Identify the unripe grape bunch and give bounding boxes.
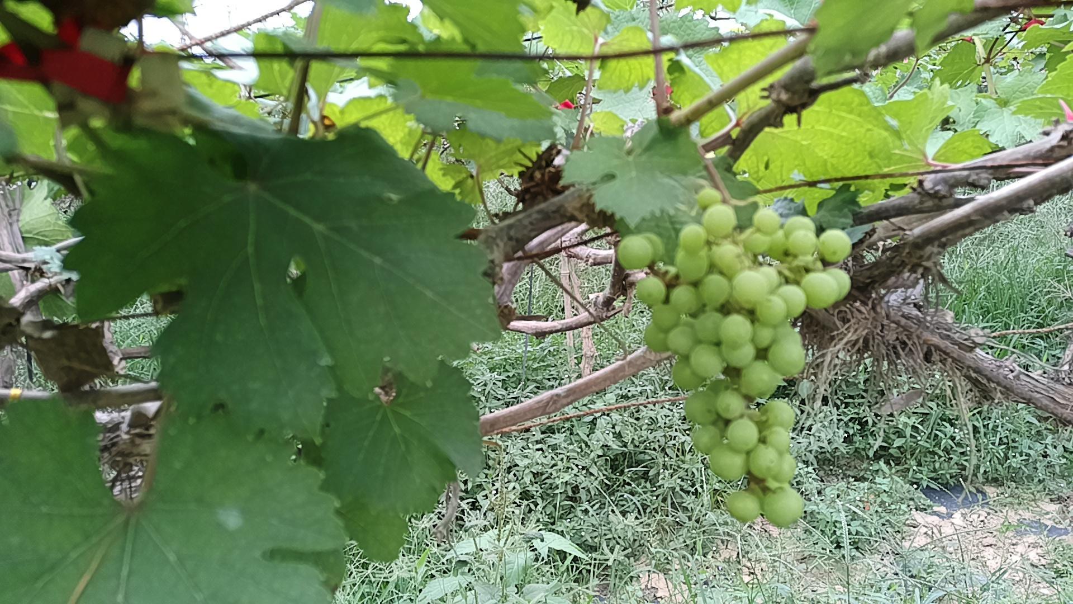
[617,188,853,527]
